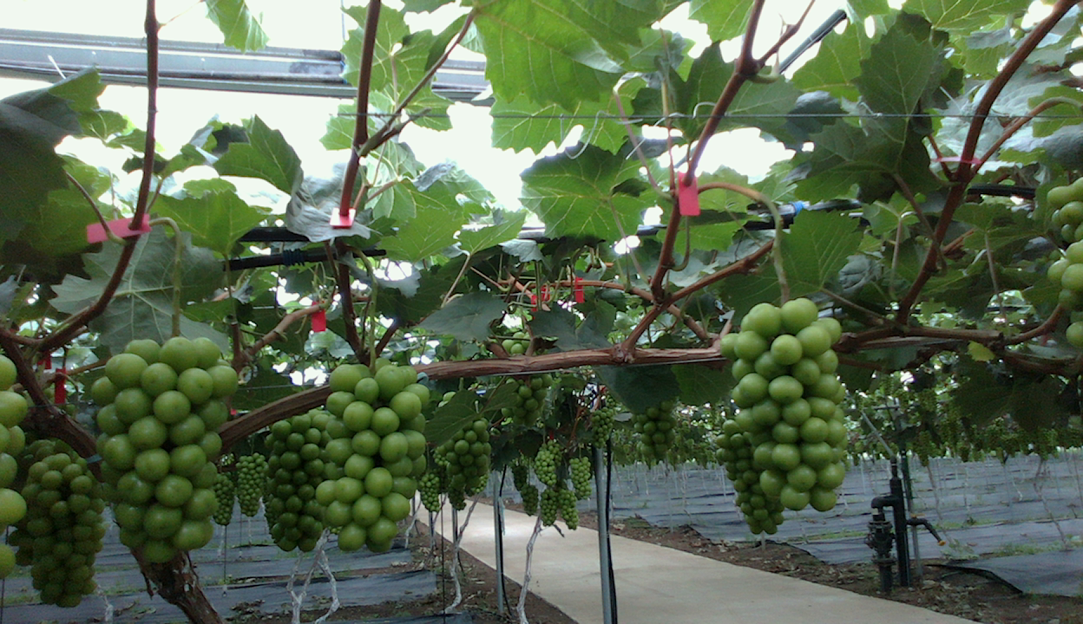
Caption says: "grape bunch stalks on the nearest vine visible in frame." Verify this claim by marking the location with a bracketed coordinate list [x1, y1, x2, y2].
[697, 181, 791, 305]
[148, 218, 181, 337]
[345, 246, 377, 377]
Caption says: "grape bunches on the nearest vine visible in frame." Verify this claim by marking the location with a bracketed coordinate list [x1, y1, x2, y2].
[719, 297, 847, 510]
[90, 335, 239, 562]
[316, 359, 429, 553]
[1047, 175, 1081, 345]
